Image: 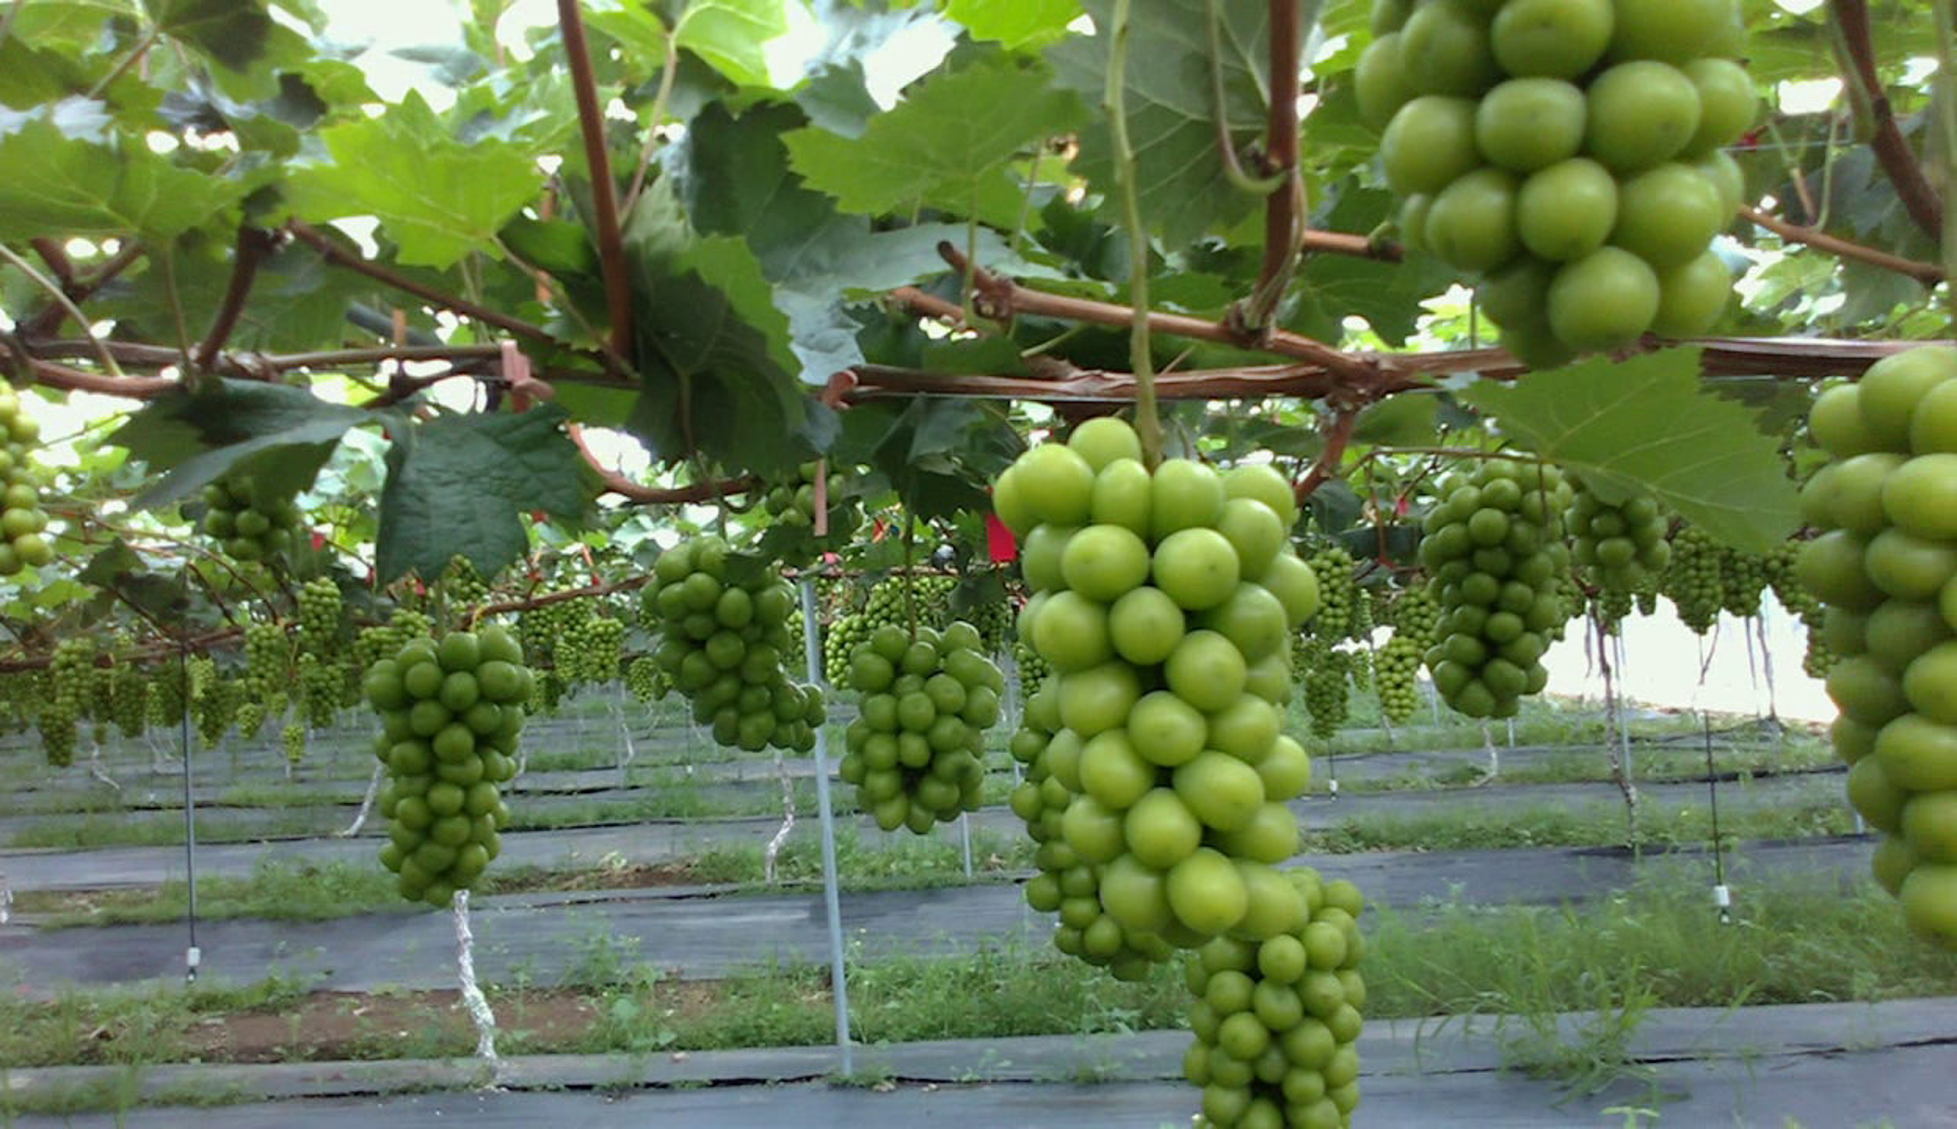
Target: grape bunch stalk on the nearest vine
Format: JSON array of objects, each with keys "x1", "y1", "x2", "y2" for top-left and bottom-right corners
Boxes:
[{"x1": 1099, "y1": 0, "x2": 1165, "y2": 474}]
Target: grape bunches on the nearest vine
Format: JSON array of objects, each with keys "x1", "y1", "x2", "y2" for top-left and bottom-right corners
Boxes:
[
  {"x1": 991, "y1": 416, "x2": 1320, "y2": 947},
  {"x1": 1352, "y1": 2, "x2": 1758, "y2": 372},
  {"x1": 1797, "y1": 345, "x2": 1955, "y2": 953}
]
